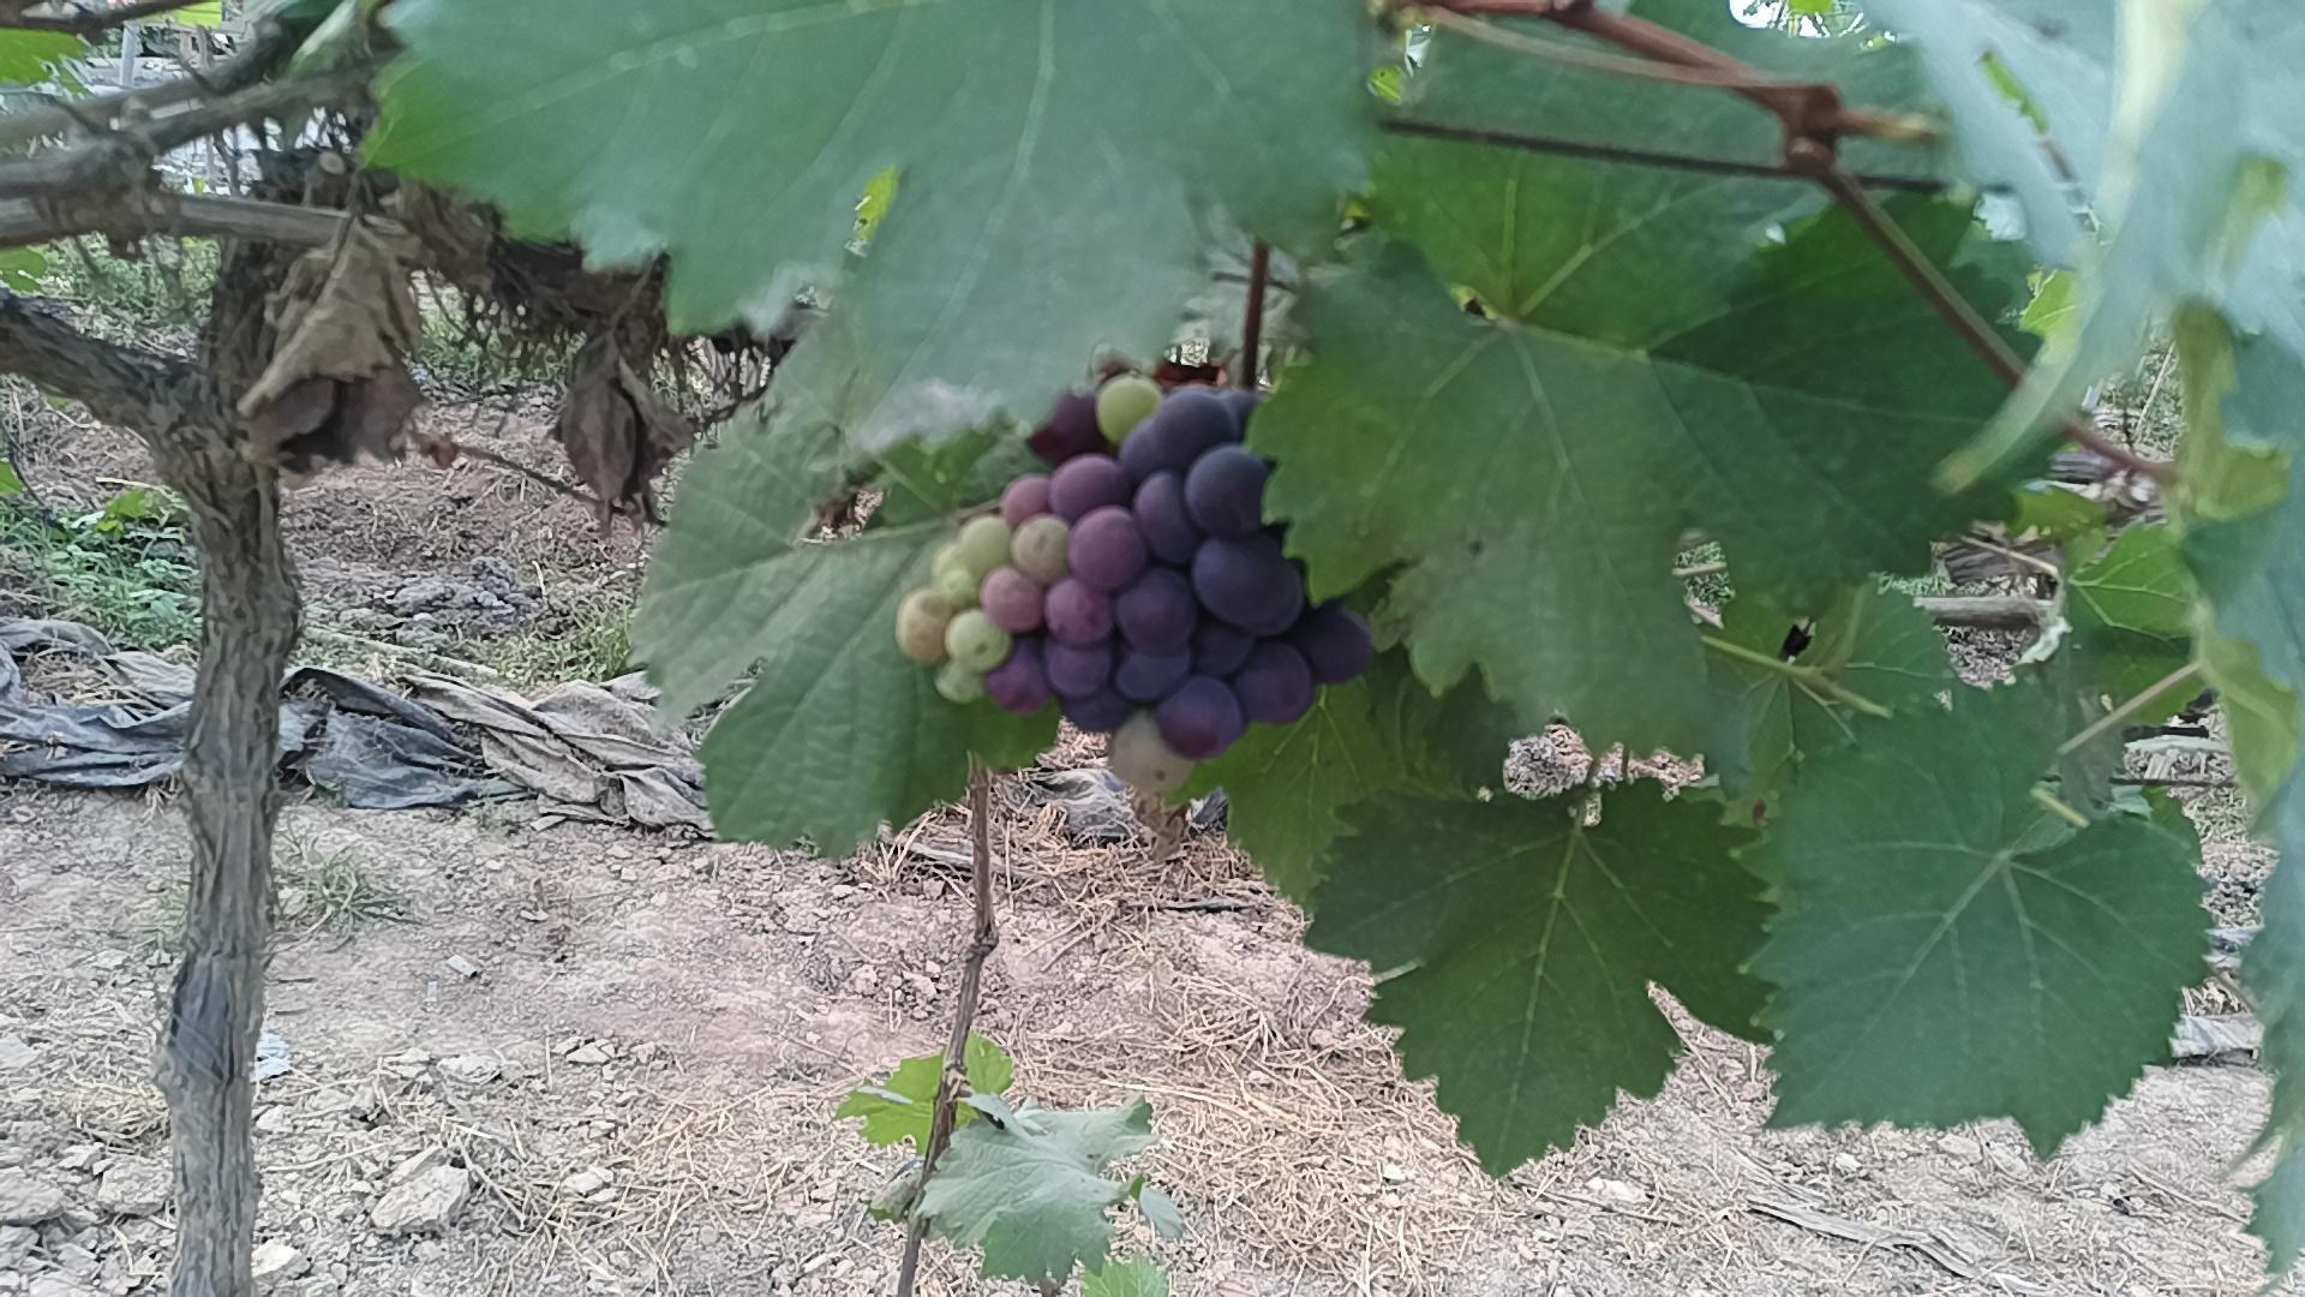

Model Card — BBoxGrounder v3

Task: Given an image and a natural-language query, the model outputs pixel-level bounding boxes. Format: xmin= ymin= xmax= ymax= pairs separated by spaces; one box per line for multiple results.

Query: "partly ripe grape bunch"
xmin=897 ymin=367 xmax=1372 ymax=794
